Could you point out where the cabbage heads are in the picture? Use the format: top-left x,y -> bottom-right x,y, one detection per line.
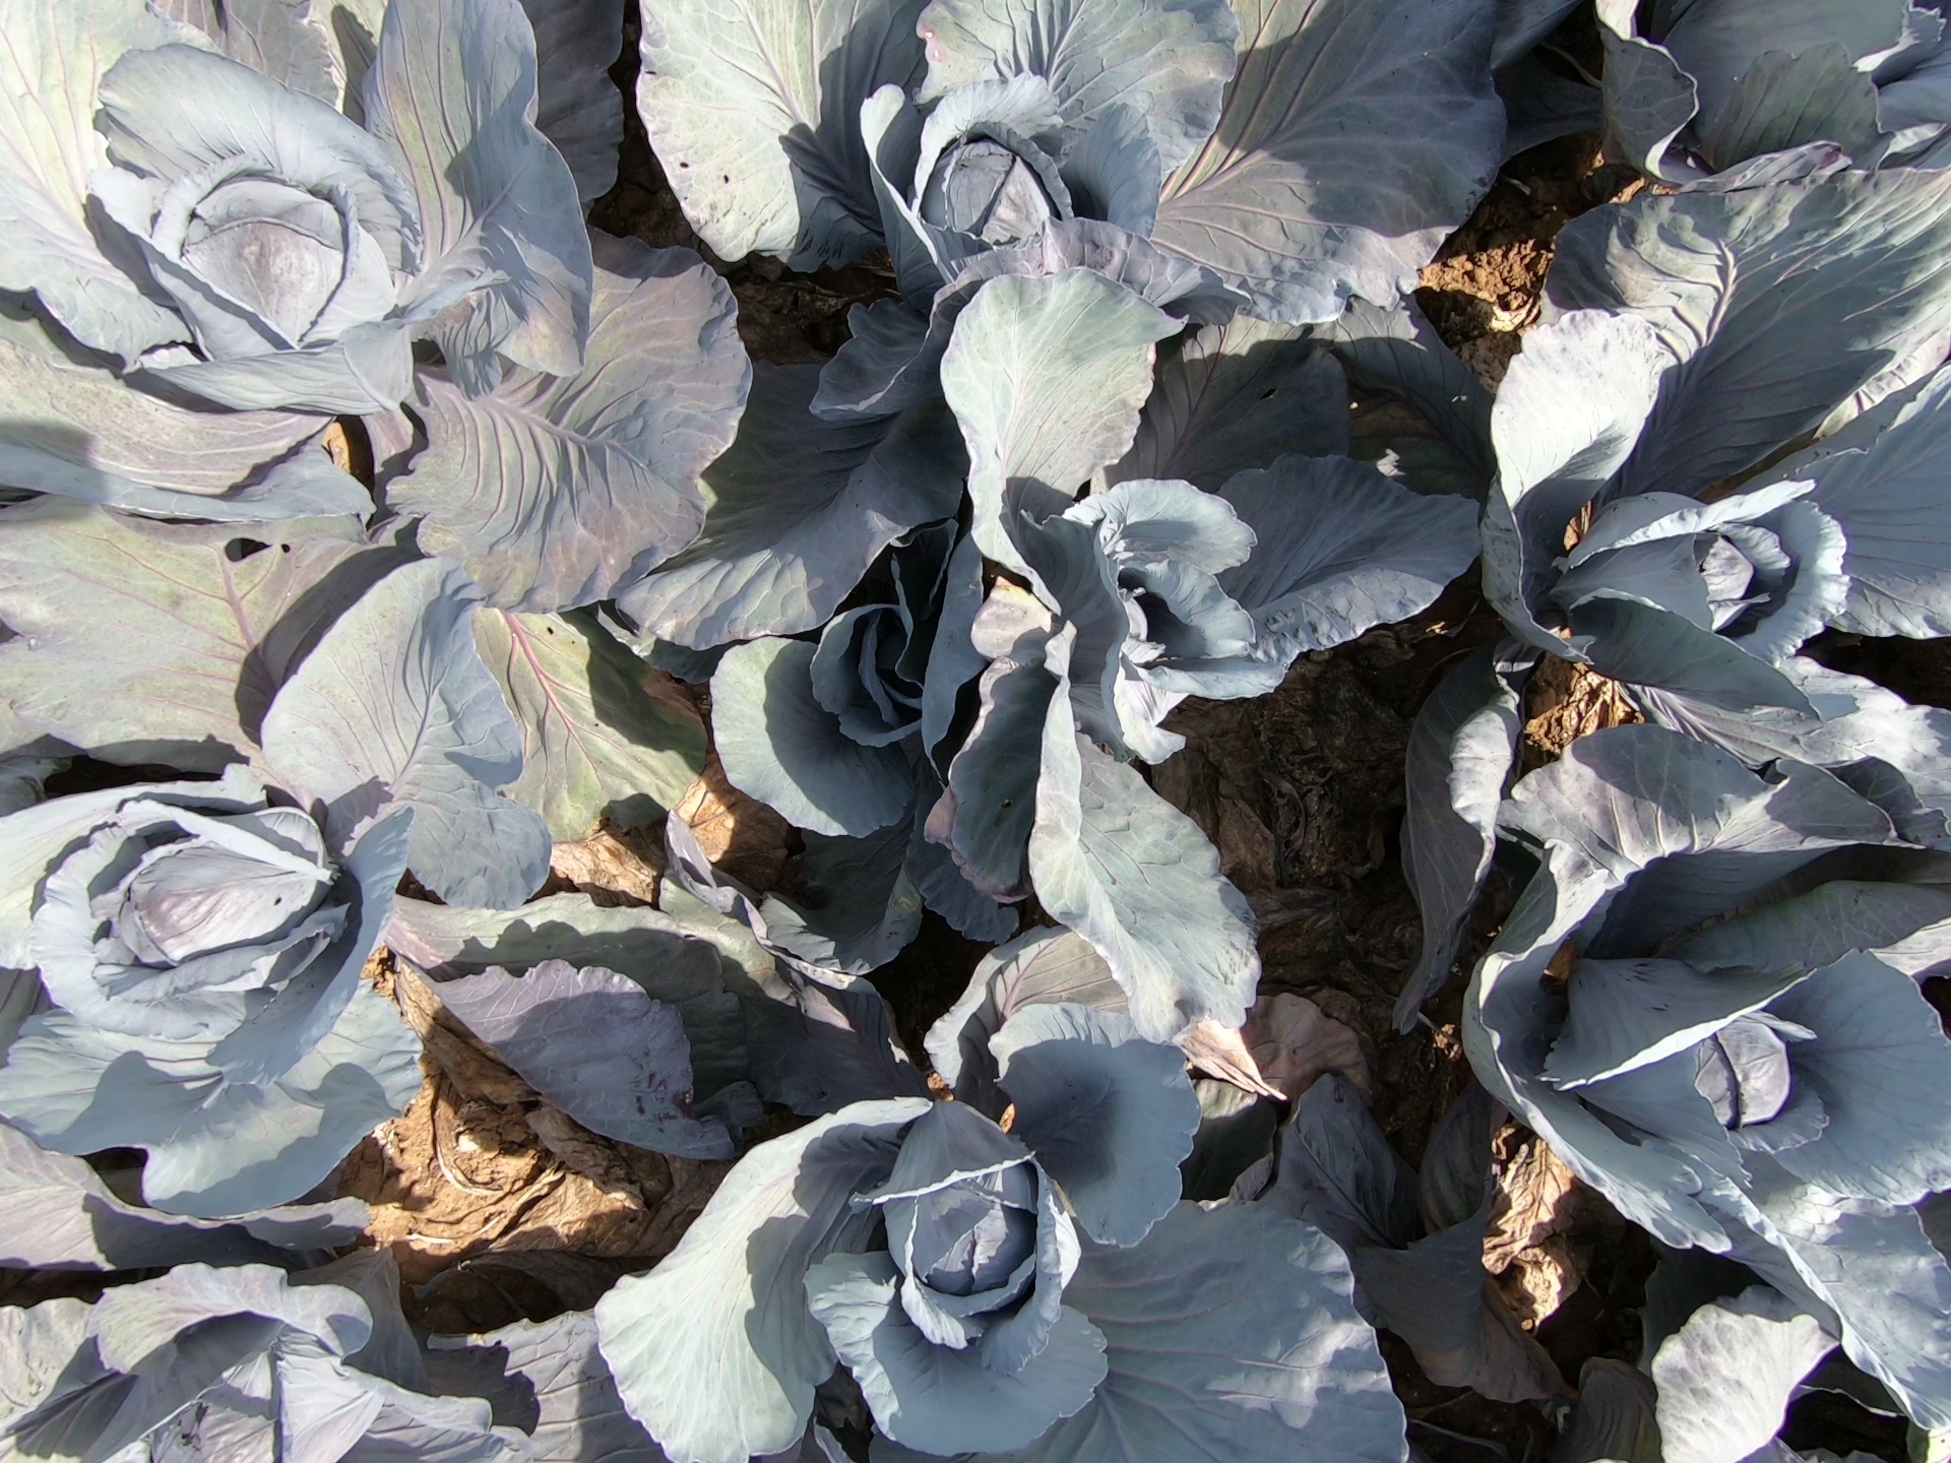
1592,516 -> 1760,644
145,1309 -> 366,1461
882,1119 -> 1047,1316
905,133 -> 1072,312
155,181 -> 398,371
111,829 -> 337,980
1020,568 -> 1149,708
1614,983 -> 1799,1145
